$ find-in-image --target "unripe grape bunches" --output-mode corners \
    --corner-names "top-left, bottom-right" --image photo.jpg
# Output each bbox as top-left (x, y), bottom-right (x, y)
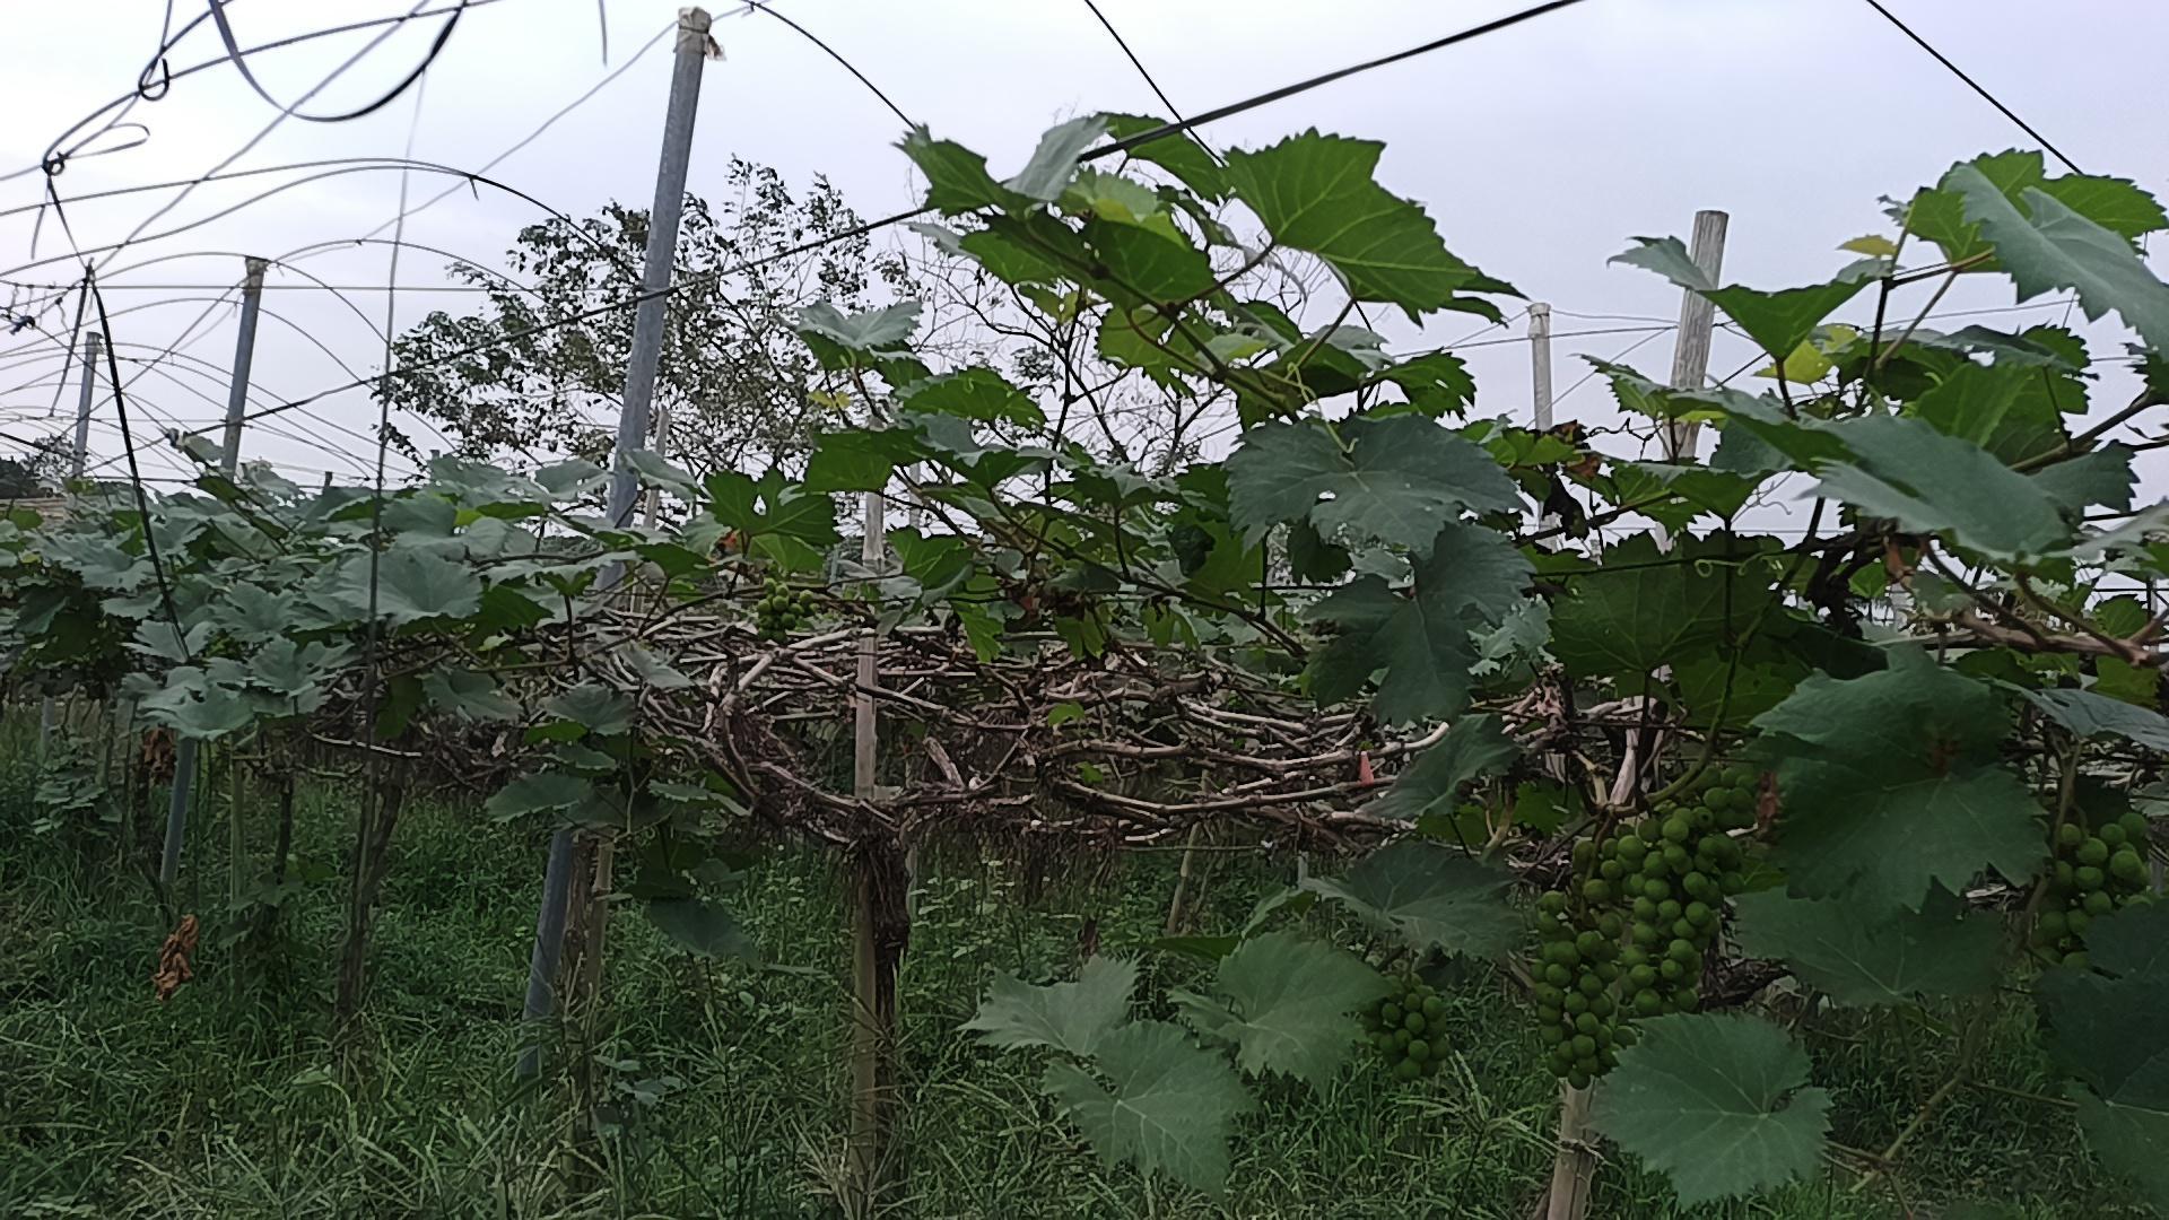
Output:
top-left (1353, 971), bottom-right (1449, 1082)
top-left (2030, 813), bottom-right (2161, 973)
top-left (1531, 762), bottom-right (1759, 1090)
top-left (752, 577), bottom-right (820, 645)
